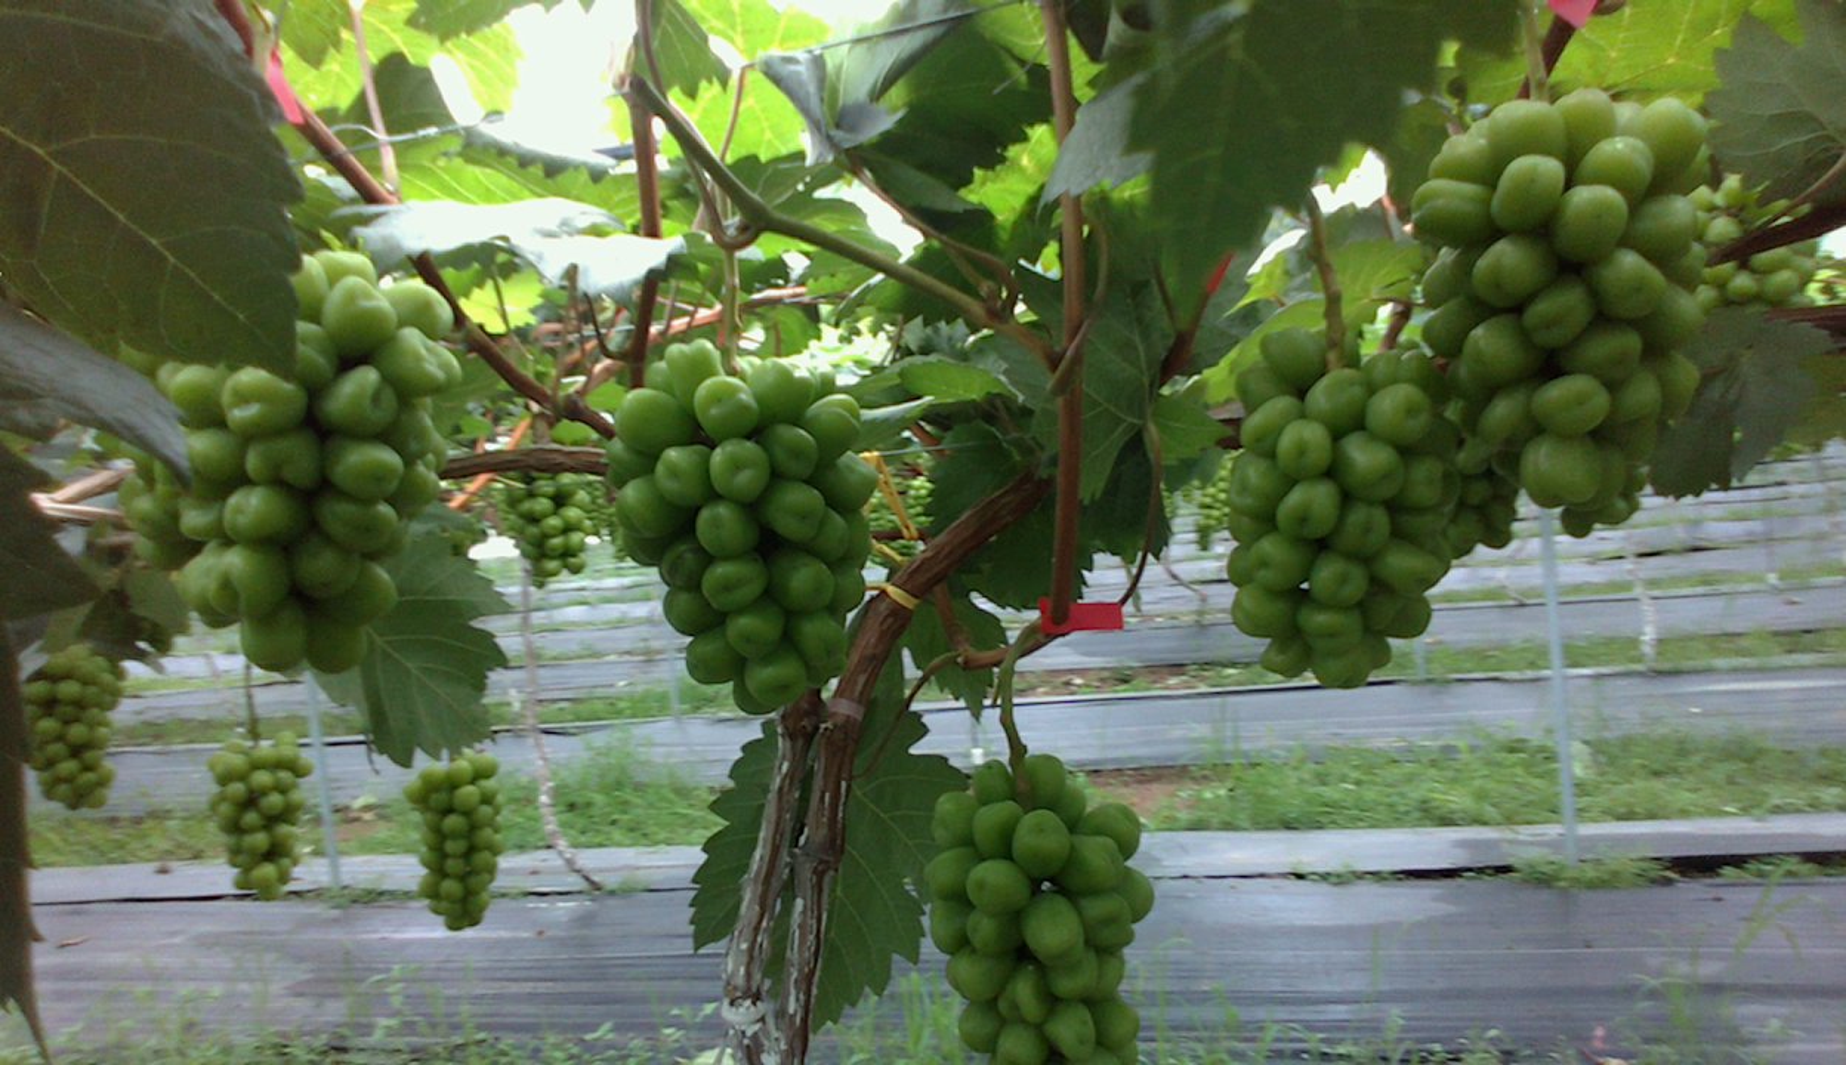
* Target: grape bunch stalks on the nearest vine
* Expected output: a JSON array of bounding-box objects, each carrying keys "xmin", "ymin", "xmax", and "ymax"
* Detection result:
[
  {"xmin": 1522, "ymin": 1, "xmax": 1547, "ymax": 99},
  {"xmin": 993, "ymin": 623, "xmax": 1037, "ymax": 808},
  {"xmin": 722, "ymin": 250, "xmax": 740, "ymax": 371},
  {"xmin": 1305, "ymin": 201, "xmax": 1345, "ymax": 367}
]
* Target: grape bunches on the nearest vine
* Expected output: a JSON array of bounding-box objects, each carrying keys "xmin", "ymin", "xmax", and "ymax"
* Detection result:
[
  {"xmin": 606, "ymin": 337, "xmax": 876, "ymax": 714},
  {"xmin": 926, "ymin": 751, "xmax": 1152, "ymax": 1064},
  {"xmin": 1225, "ymin": 325, "xmax": 1461, "ymax": 692},
  {"xmin": 114, "ymin": 256, "xmax": 461, "ymax": 673},
  {"xmin": 1410, "ymin": 87, "xmax": 1710, "ymax": 524}
]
